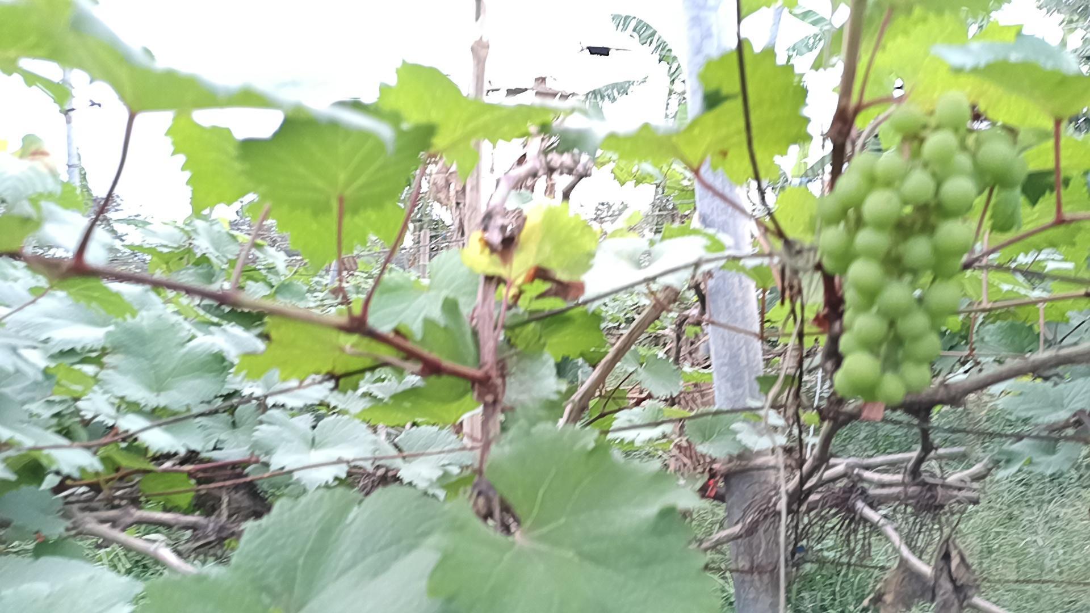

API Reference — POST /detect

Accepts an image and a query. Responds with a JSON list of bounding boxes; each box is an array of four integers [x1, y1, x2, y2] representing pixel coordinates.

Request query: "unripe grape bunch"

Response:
[[819, 93, 1028, 406]]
